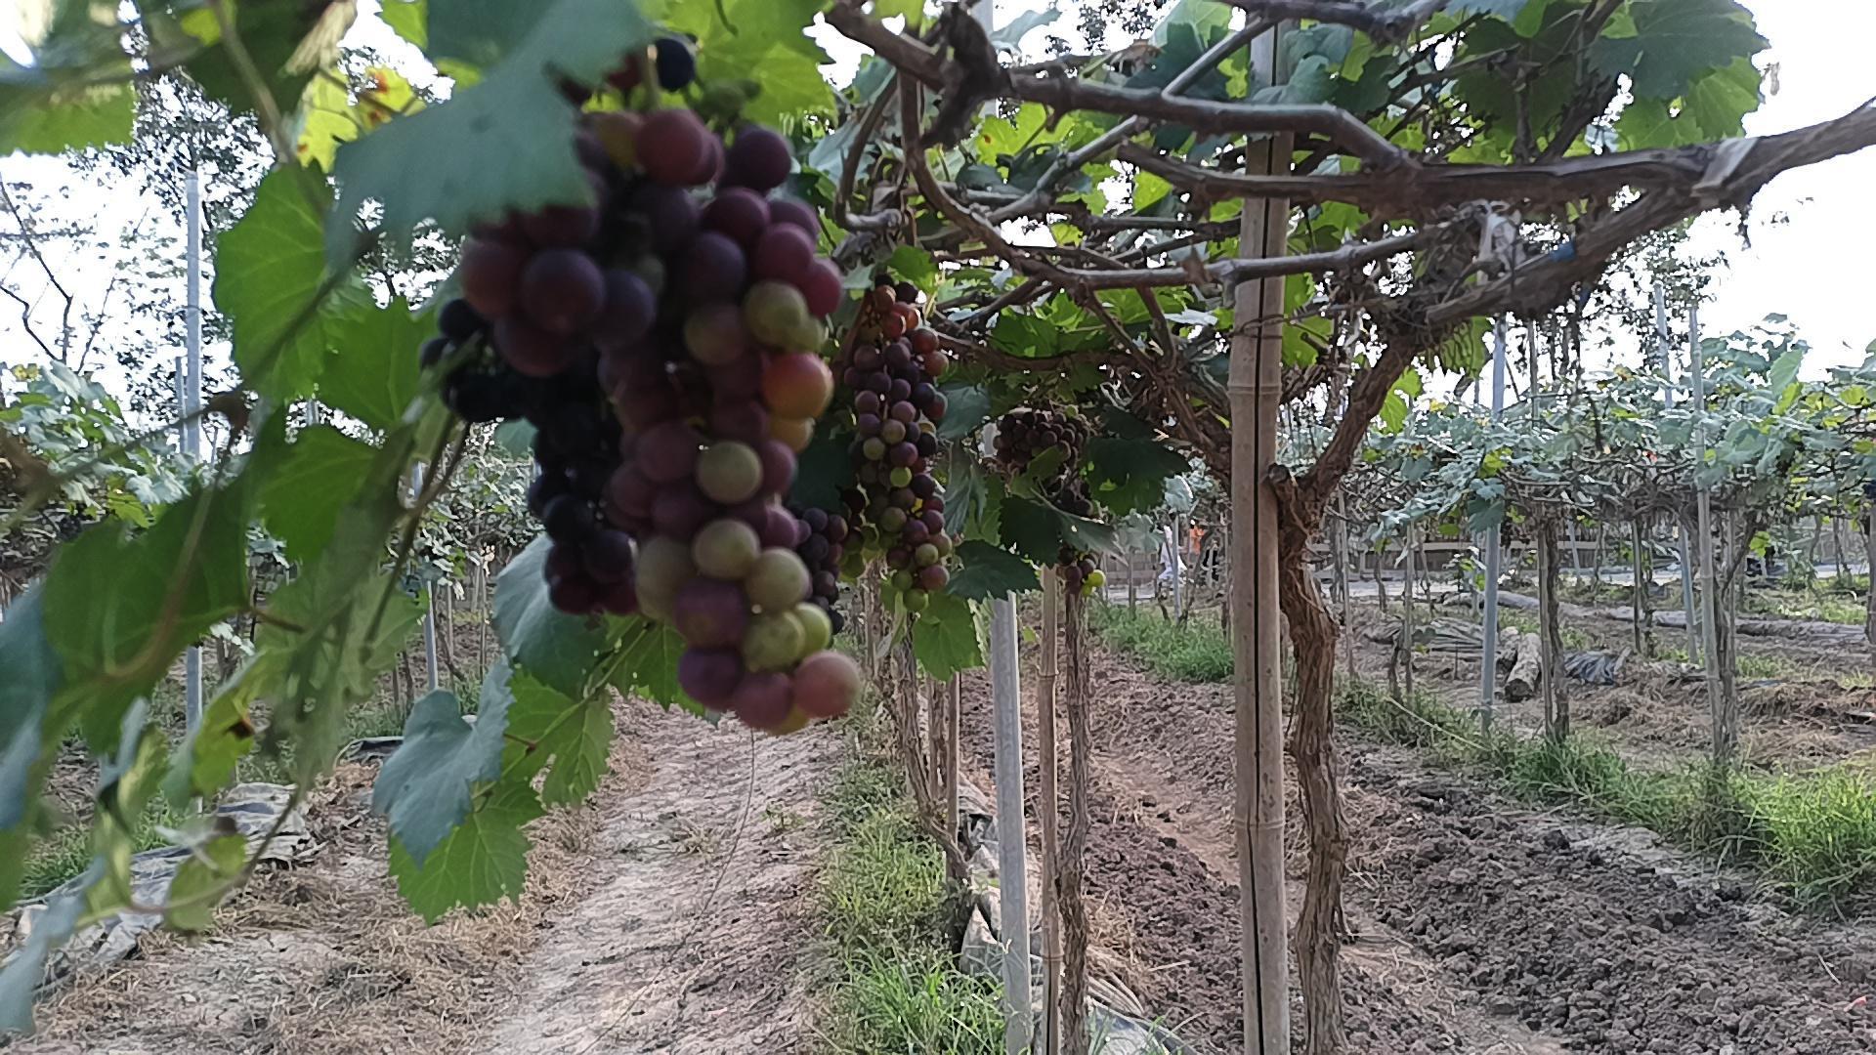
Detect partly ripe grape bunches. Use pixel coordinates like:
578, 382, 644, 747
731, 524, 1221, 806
996, 407, 1104, 593
844, 284, 954, 616
463, 36, 856, 730
791, 487, 877, 633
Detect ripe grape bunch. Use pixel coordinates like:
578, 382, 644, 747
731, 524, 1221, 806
421, 299, 636, 614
